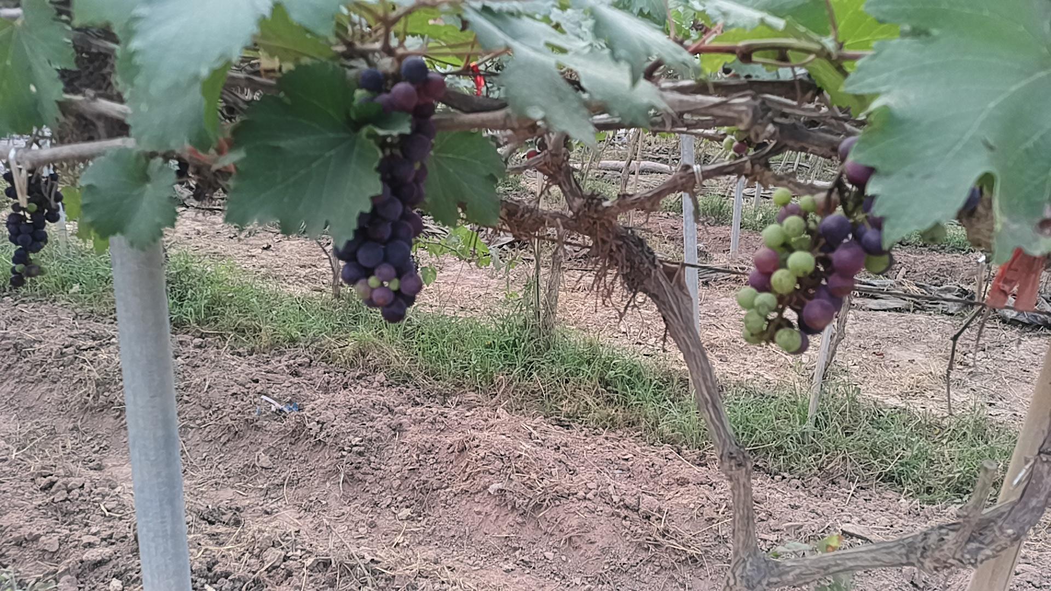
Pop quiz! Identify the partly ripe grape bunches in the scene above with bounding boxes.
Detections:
[2,159,63,287]
[333,54,446,322]
[737,137,893,354]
